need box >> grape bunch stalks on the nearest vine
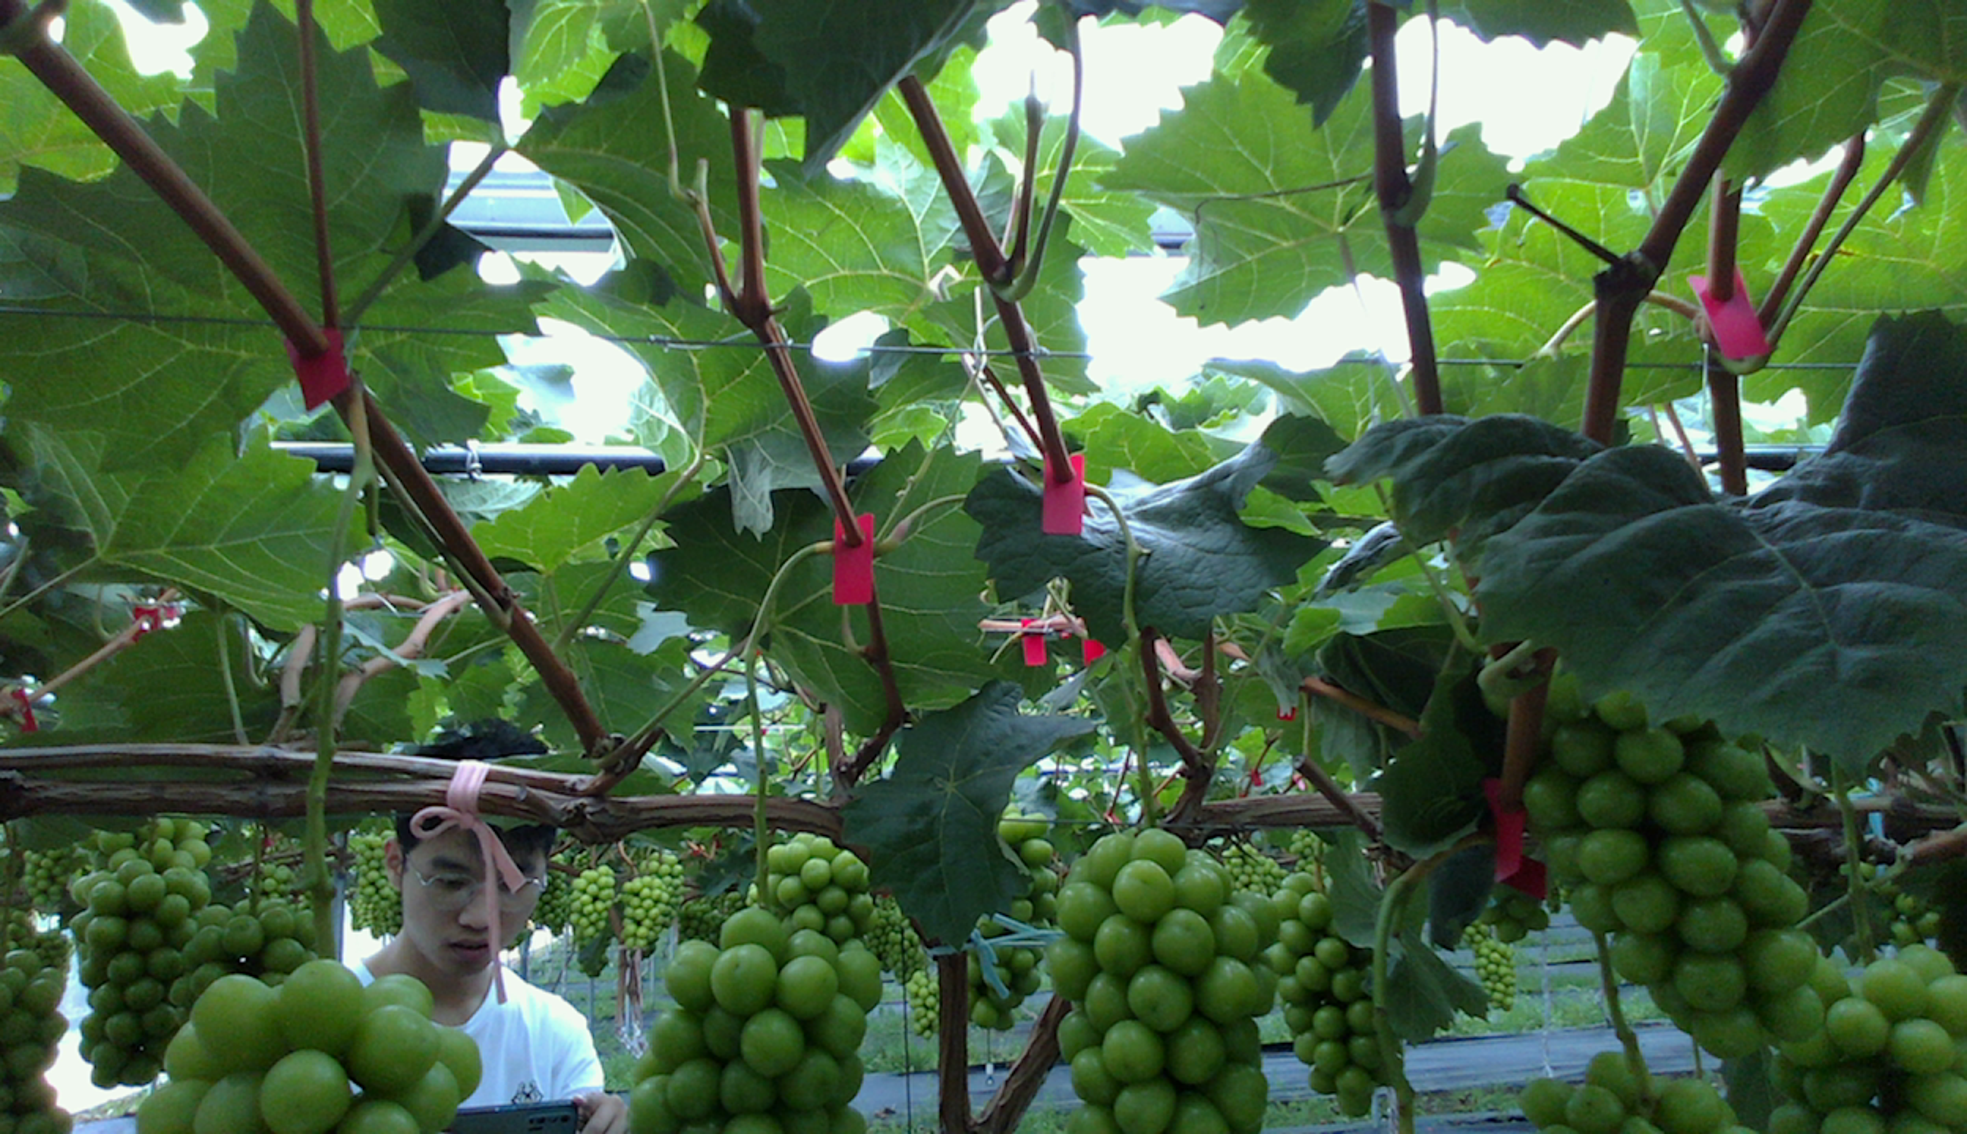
[1592,934,1657,1115]
[1088,482,1157,827]
[1830,762,1877,969]
[738,542,832,910]
[301,389,375,959]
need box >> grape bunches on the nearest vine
[1045,827,1281,1131]
[1516,1051,1756,1132]
[132,959,482,1131]
[1768,943,1965,1132]
[1524,696,1827,1062]
[624,907,884,1131]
